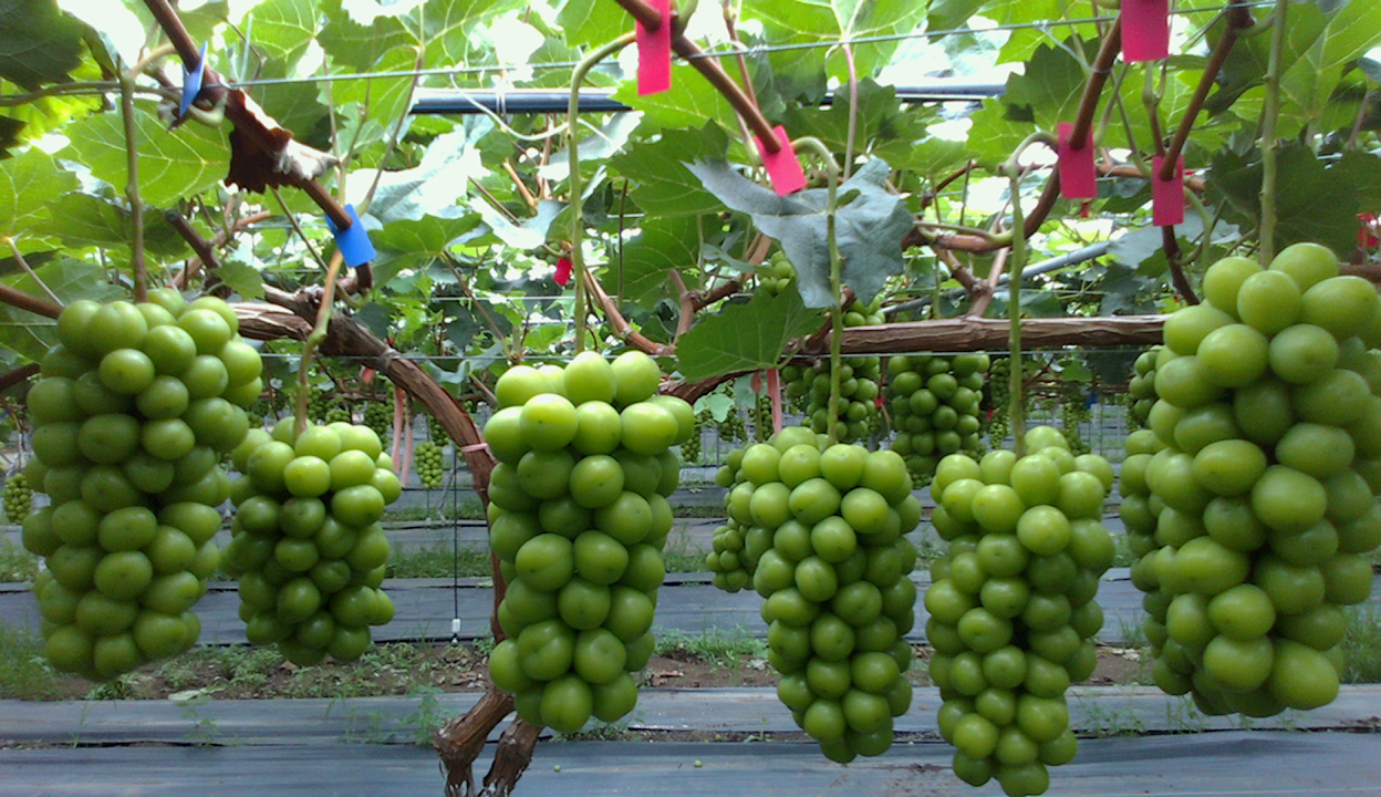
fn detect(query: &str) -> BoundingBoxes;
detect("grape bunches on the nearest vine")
[217,416,402,667]
[482,350,696,733]
[729,427,921,765]
[1146,241,1380,720]
[21,287,263,682]
[926,424,1117,796]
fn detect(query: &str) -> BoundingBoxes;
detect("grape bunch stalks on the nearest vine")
[1257,1,1286,269]
[789,137,842,447]
[1009,133,1060,460]
[120,81,147,303]
[568,32,636,358]
[294,251,343,442]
